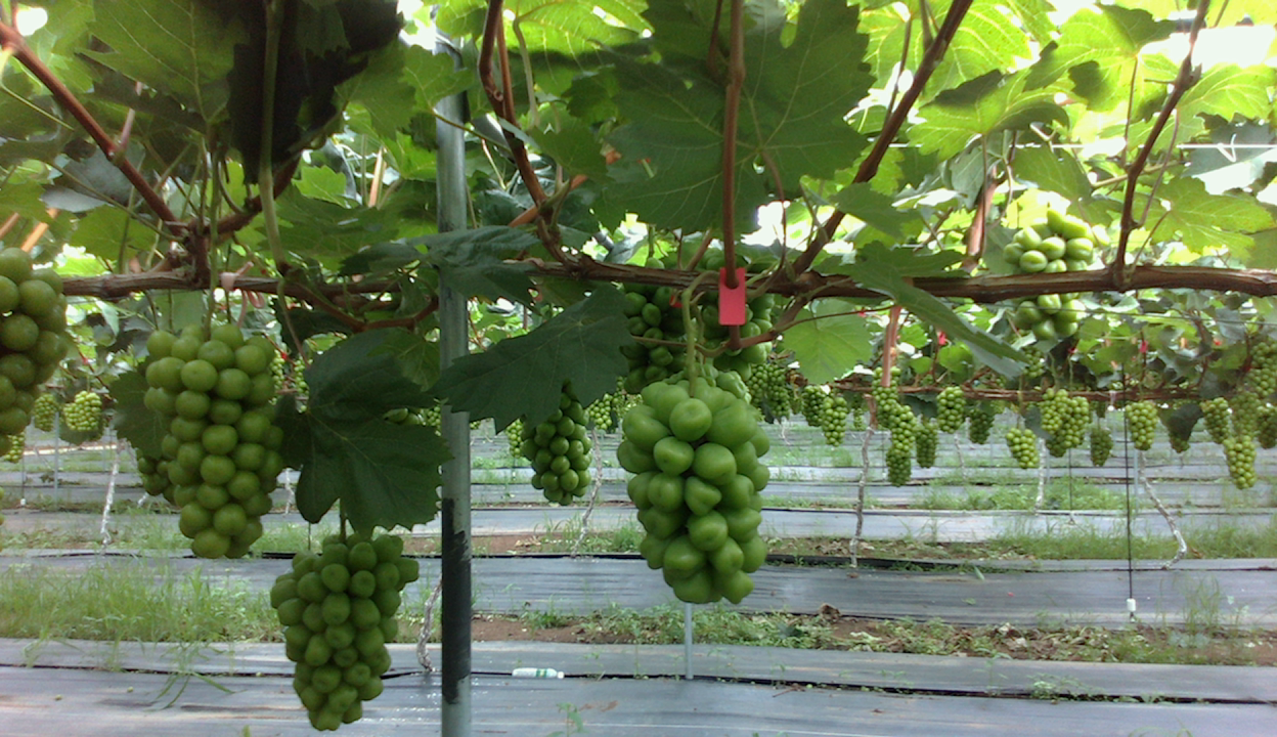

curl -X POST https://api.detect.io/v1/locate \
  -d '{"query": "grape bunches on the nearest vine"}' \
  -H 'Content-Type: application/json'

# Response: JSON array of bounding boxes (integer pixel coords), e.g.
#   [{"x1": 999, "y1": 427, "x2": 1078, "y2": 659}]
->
[
  {"x1": 616, "y1": 379, "x2": 768, "y2": 605},
  {"x1": 143, "y1": 323, "x2": 283, "y2": 559},
  {"x1": 270, "y1": 532, "x2": 420, "y2": 731},
  {"x1": 1, "y1": 248, "x2": 68, "y2": 454}
]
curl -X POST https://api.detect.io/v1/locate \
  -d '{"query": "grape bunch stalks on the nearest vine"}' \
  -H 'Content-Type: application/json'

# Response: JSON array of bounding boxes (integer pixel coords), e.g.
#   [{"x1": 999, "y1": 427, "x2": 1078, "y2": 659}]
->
[
  {"x1": 681, "y1": 271, "x2": 720, "y2": 398},
  {"x1": 205, "y1": 149, "x2": 225, "y2": 341},
  {"x1": 339, "y1": 501, "x2": 346, "y2": 543}
]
